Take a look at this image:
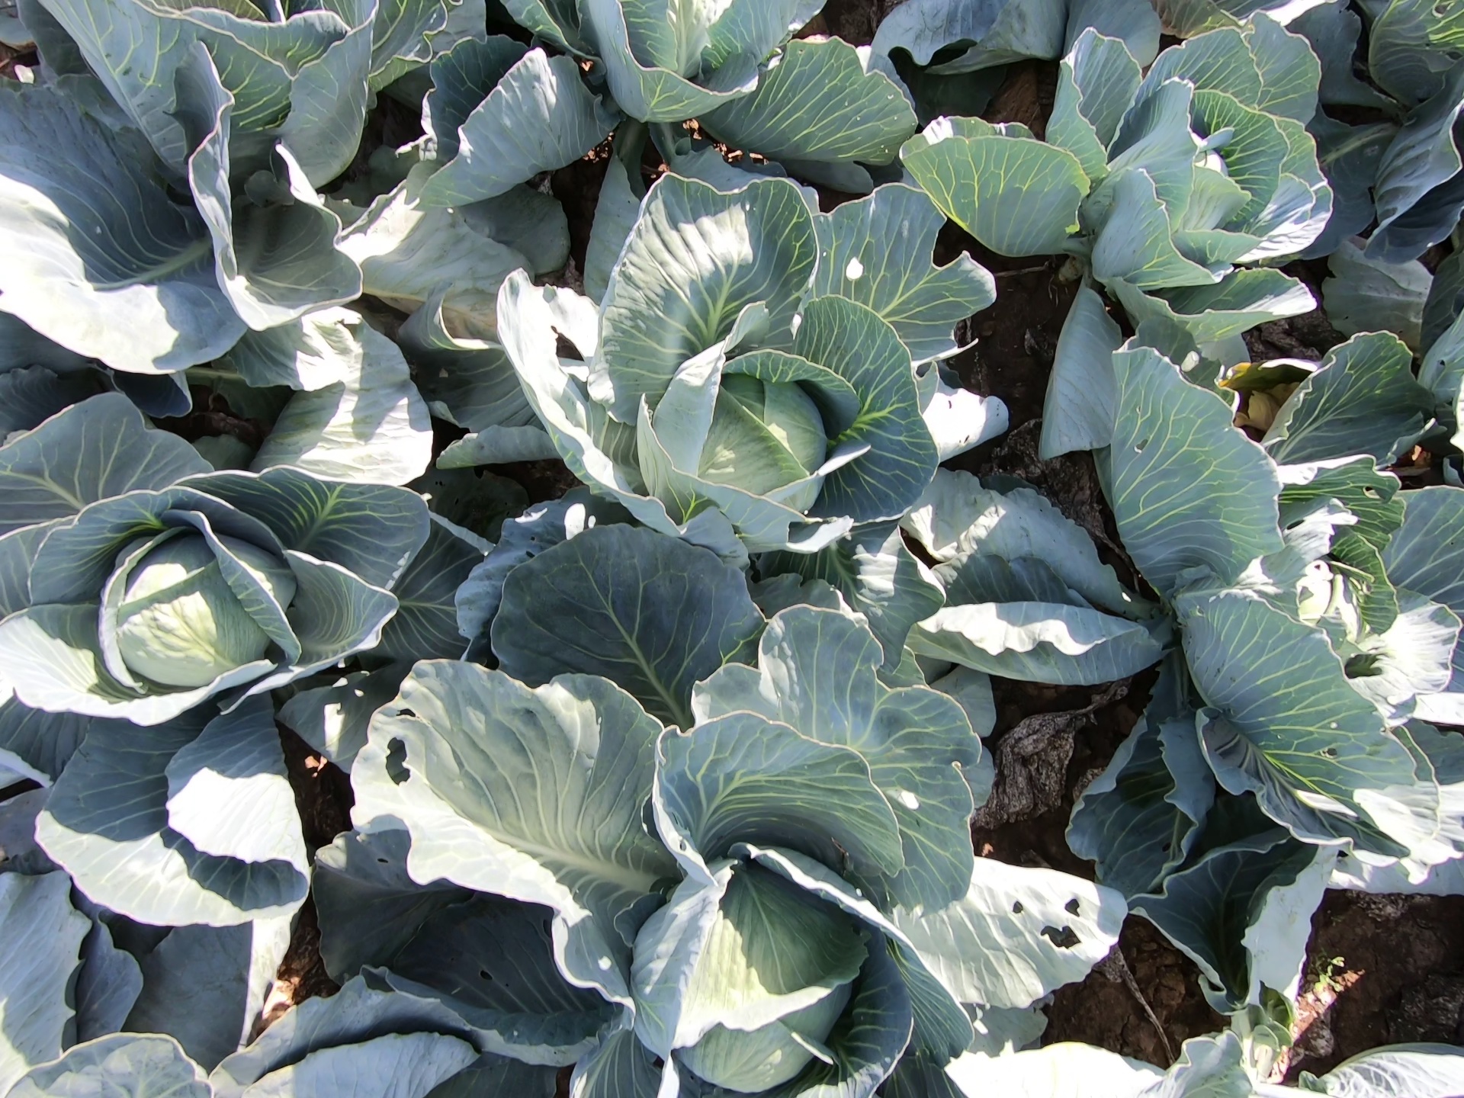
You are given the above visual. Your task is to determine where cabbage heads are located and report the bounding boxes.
[1125,136,1231,242]
[106,534,284,686]
[663,368,826,518]
[657,866,854,1096]
[1216,546,1360,692]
